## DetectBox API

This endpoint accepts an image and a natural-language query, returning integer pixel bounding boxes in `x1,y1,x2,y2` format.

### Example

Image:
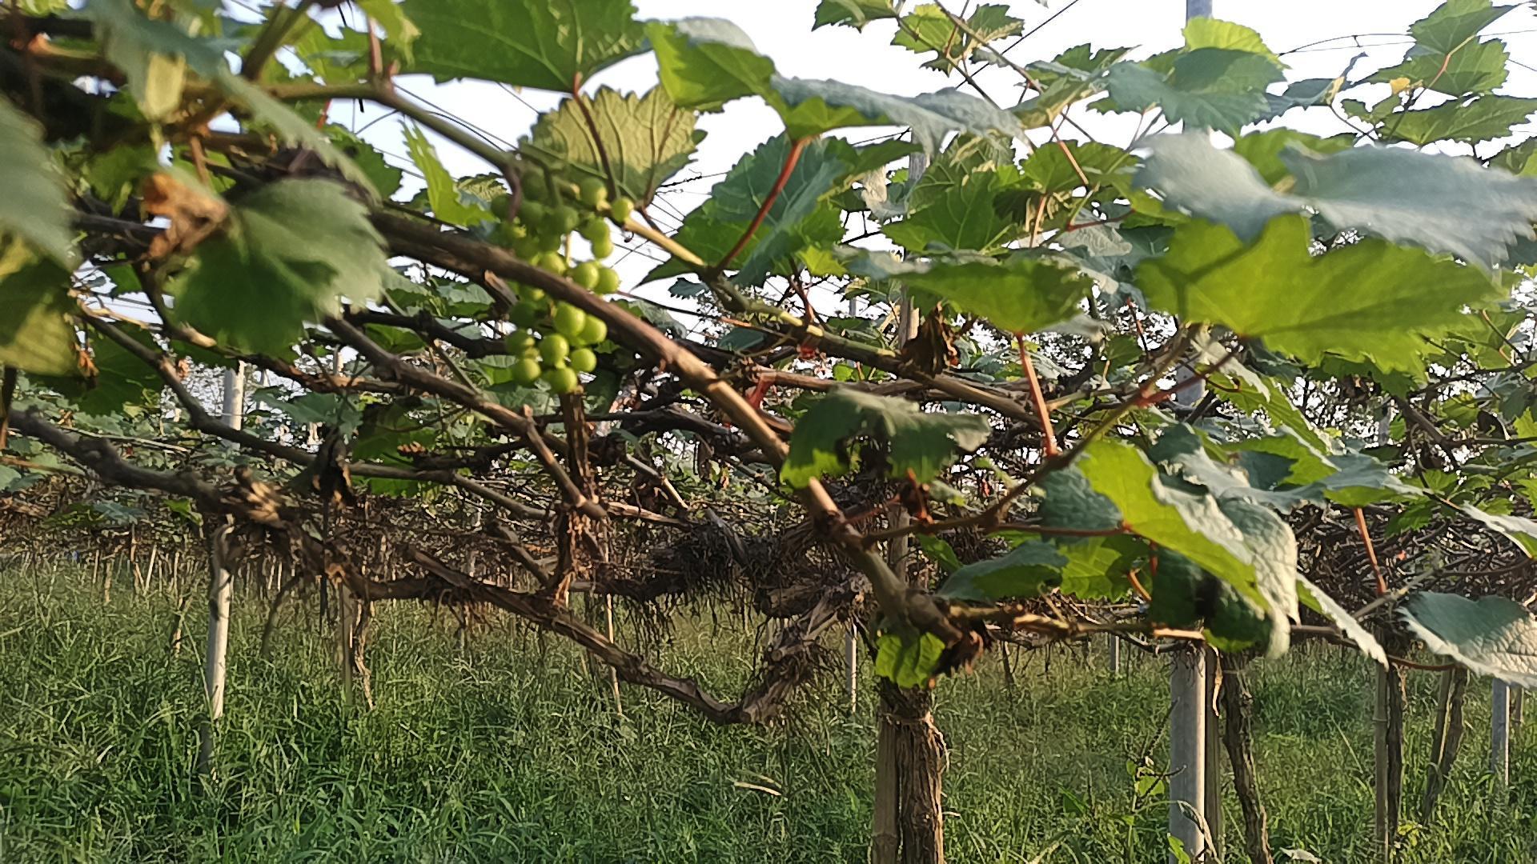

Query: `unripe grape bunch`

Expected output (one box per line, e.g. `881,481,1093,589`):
489,170,634,393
